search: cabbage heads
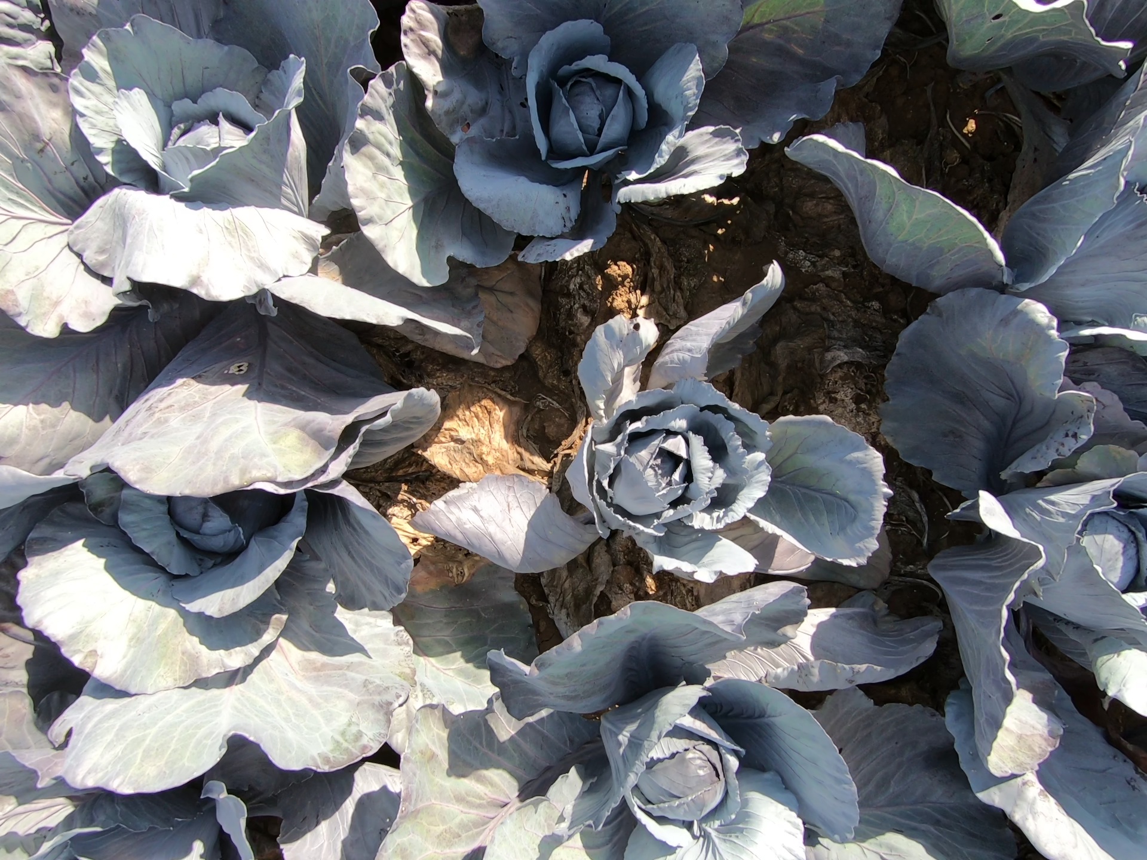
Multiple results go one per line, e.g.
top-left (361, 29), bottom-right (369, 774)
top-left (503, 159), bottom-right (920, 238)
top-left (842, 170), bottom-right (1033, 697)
top-left (168, 121), bottom-right (268, 225)
top-left (627, 700), bottom-right (728, 821)
top-left (551, 71), bottom-right (629, 156)
top-left (162, 436), bottom-right (280, 551)
top-left (1040, 505), bottom-right (1142, 603)
top-left (55, 804), bottom-right (209, 856)
top-left (621, 434), bottom-right (694, 511)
